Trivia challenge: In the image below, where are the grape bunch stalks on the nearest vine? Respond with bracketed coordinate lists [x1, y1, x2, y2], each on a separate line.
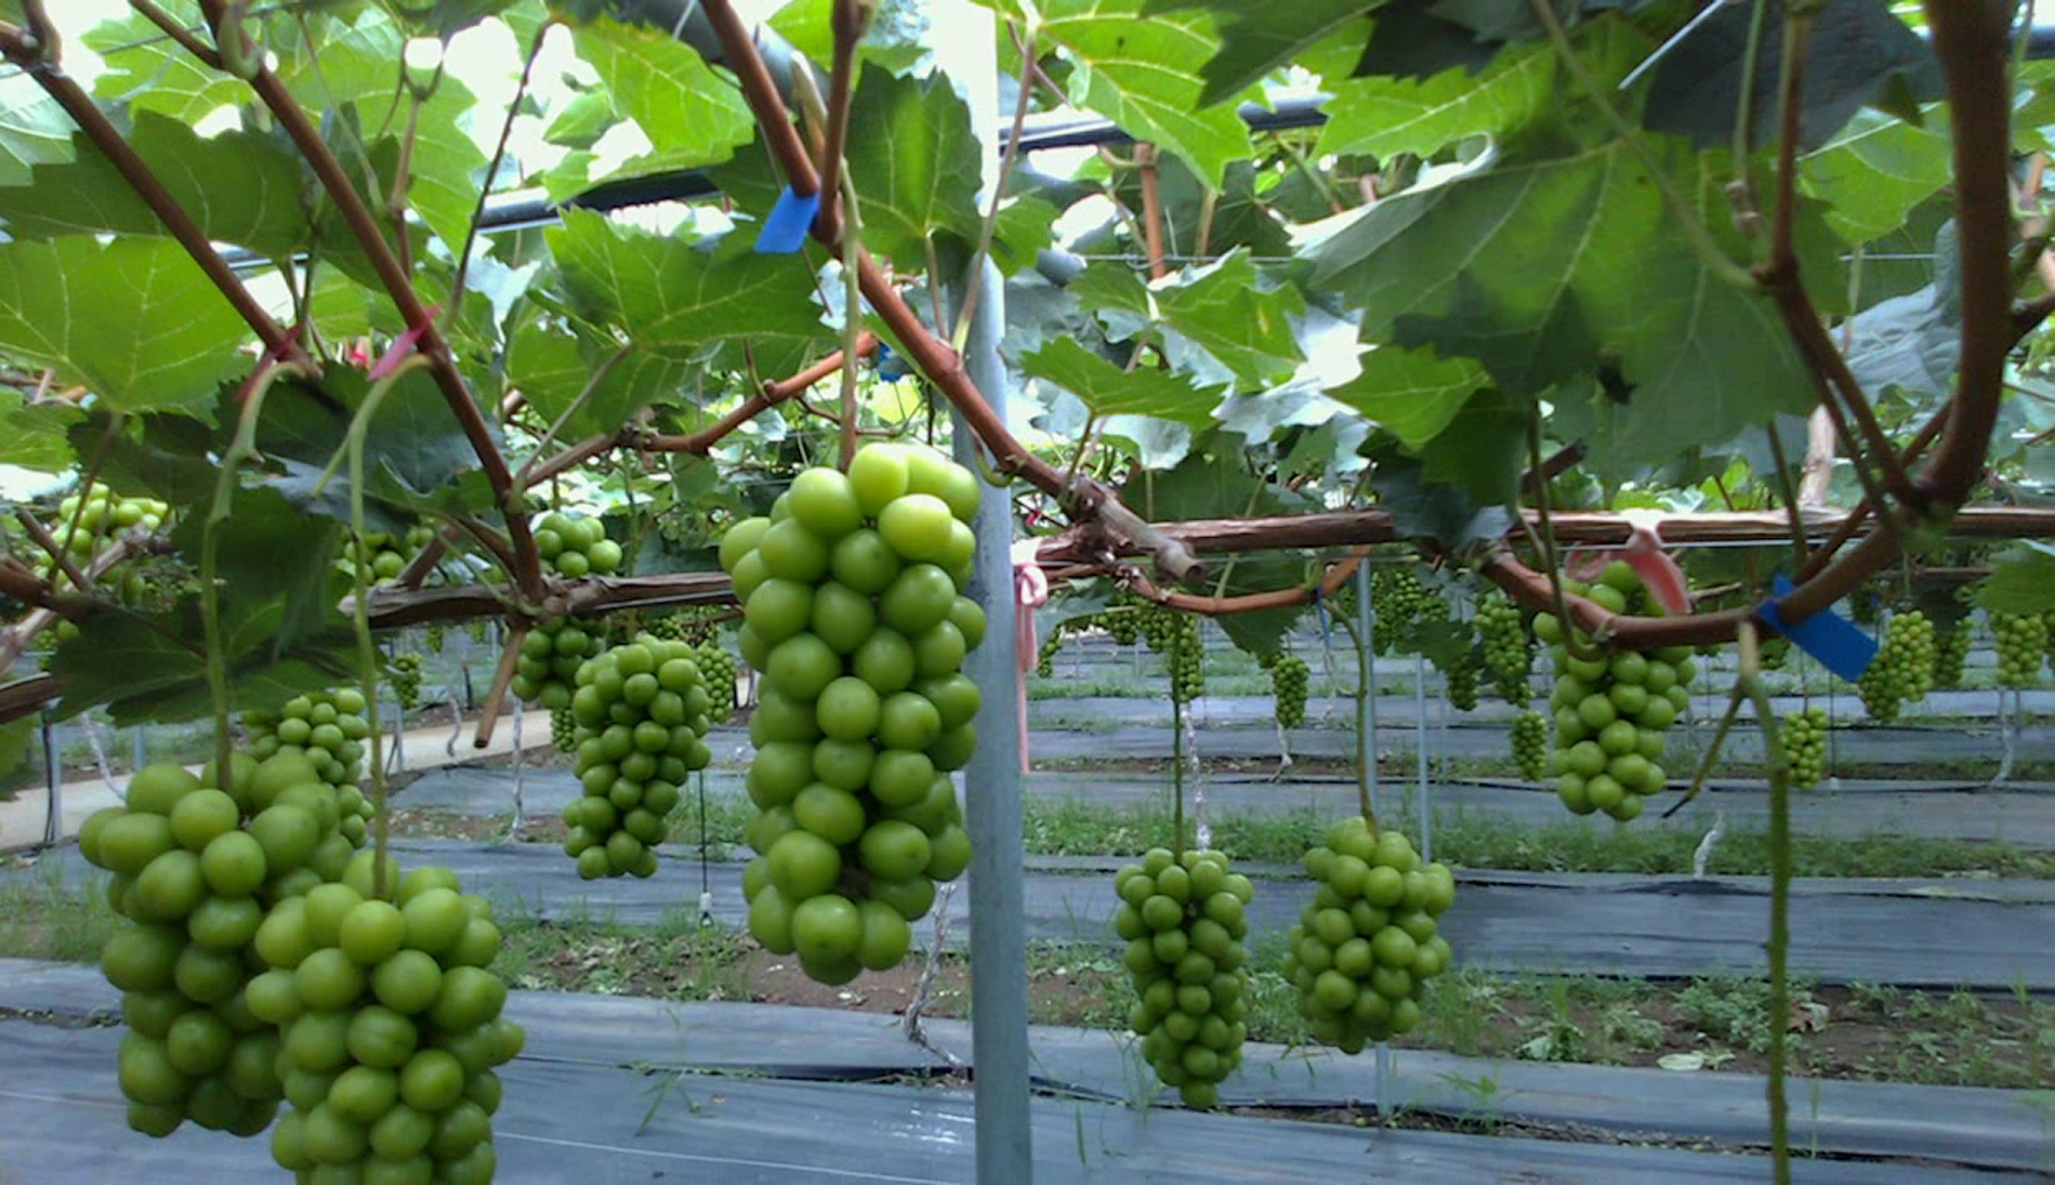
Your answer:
[347, 354, 433, 900]
[199, 362, 301, 795]
[838, 156, 866, 474]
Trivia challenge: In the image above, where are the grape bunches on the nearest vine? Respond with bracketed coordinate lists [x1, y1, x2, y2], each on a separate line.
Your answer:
[720, 441, 988, 984]
[244, 849, 524, 1183]
[77, 750, 354, 1141]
